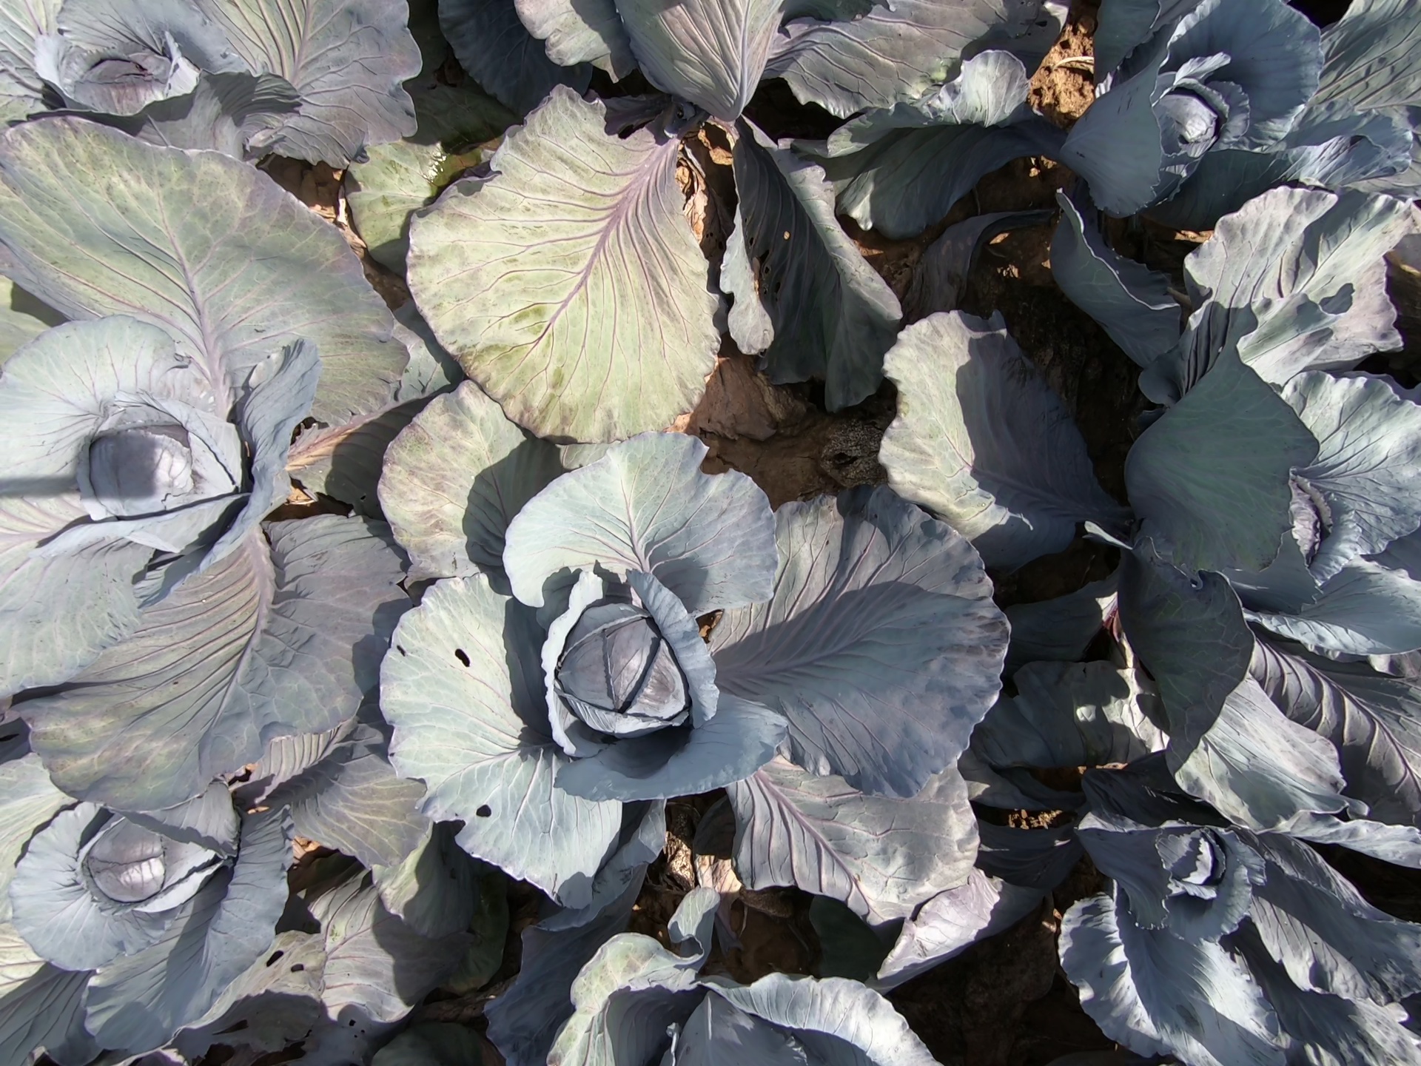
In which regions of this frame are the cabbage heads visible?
[1121,83,1223,175]
[671,1002,802,1062]
[81,787,226,909]
[562,606,692,734]
[1126,815,1218,895]
[72,53,212,155]
[1205,460,1322,572]
[79,398,241,532]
